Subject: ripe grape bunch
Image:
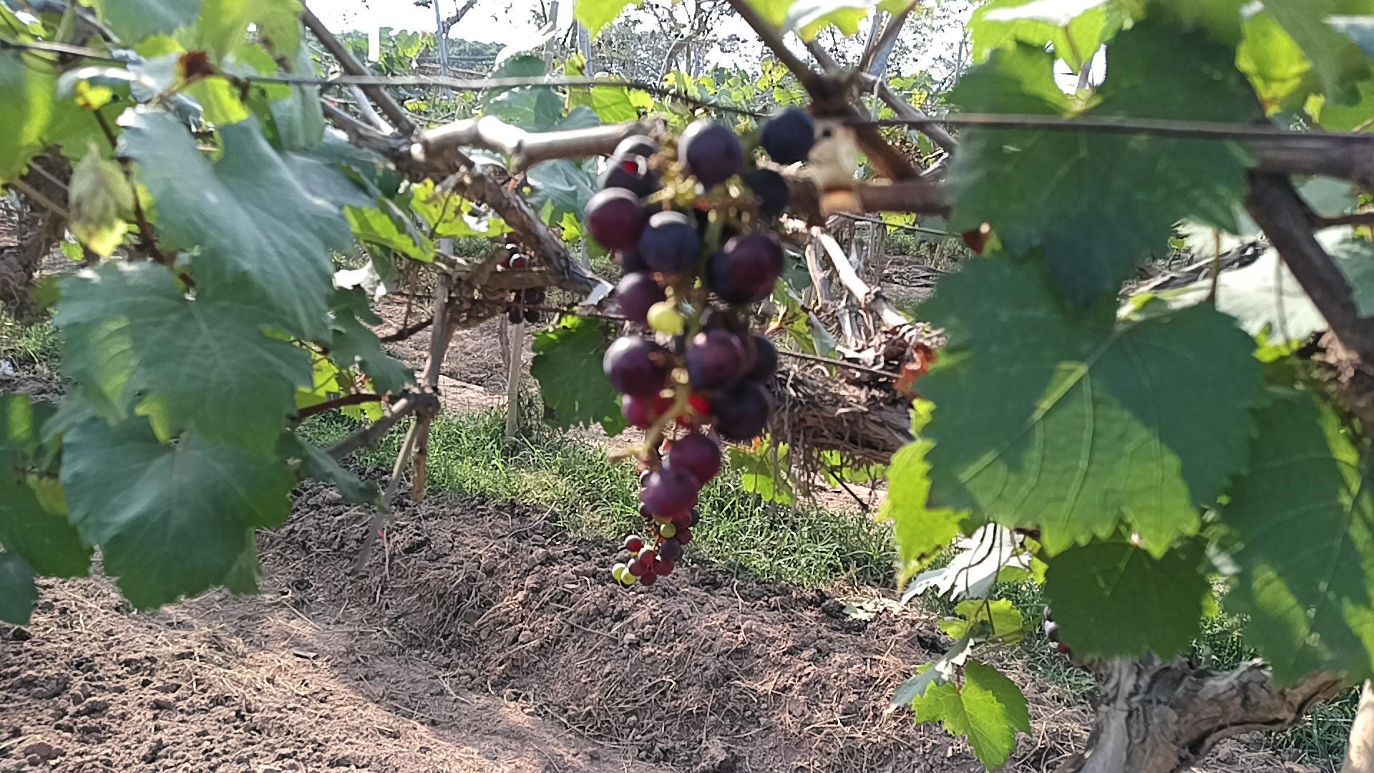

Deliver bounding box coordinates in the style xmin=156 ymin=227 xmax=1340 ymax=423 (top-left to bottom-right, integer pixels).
xmin=500 ymin=246 xmax=548 ymax=324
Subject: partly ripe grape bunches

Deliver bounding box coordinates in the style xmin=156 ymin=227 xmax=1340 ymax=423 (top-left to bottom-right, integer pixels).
xmin=586 ymin=110 xmax=814 ymax=523
xmin=611 ymin=490 xmax=696 ymax=585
